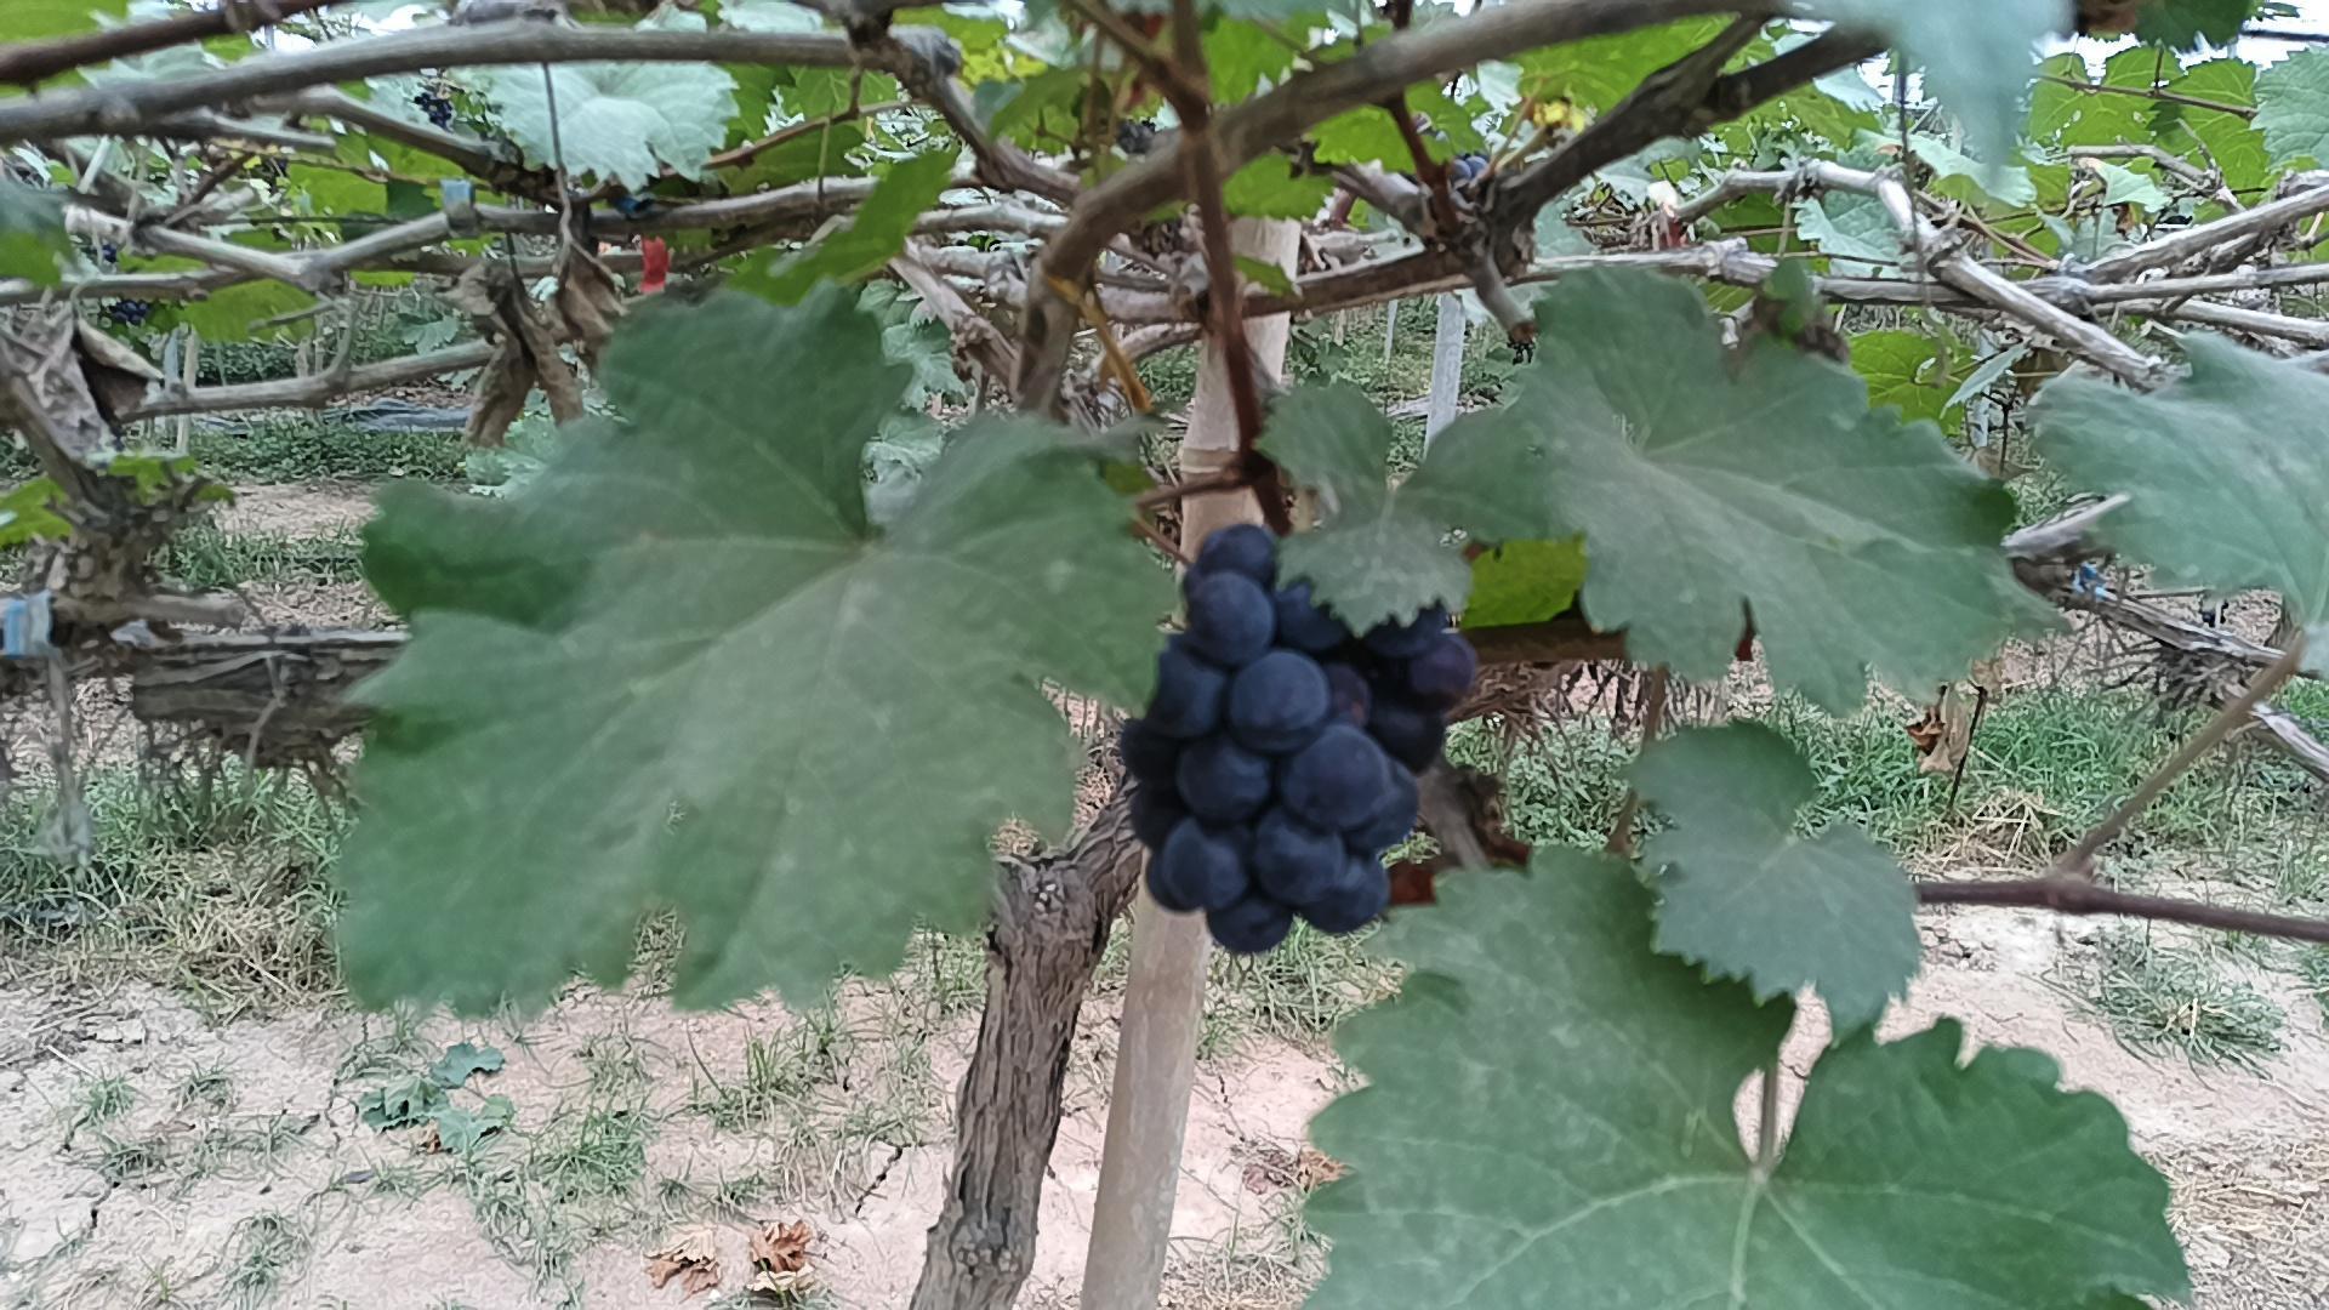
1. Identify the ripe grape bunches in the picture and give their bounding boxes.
[106,298,152,325]
[1121,524,1476,952]
[414,90,452,130]
[1451,153,1487,183]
